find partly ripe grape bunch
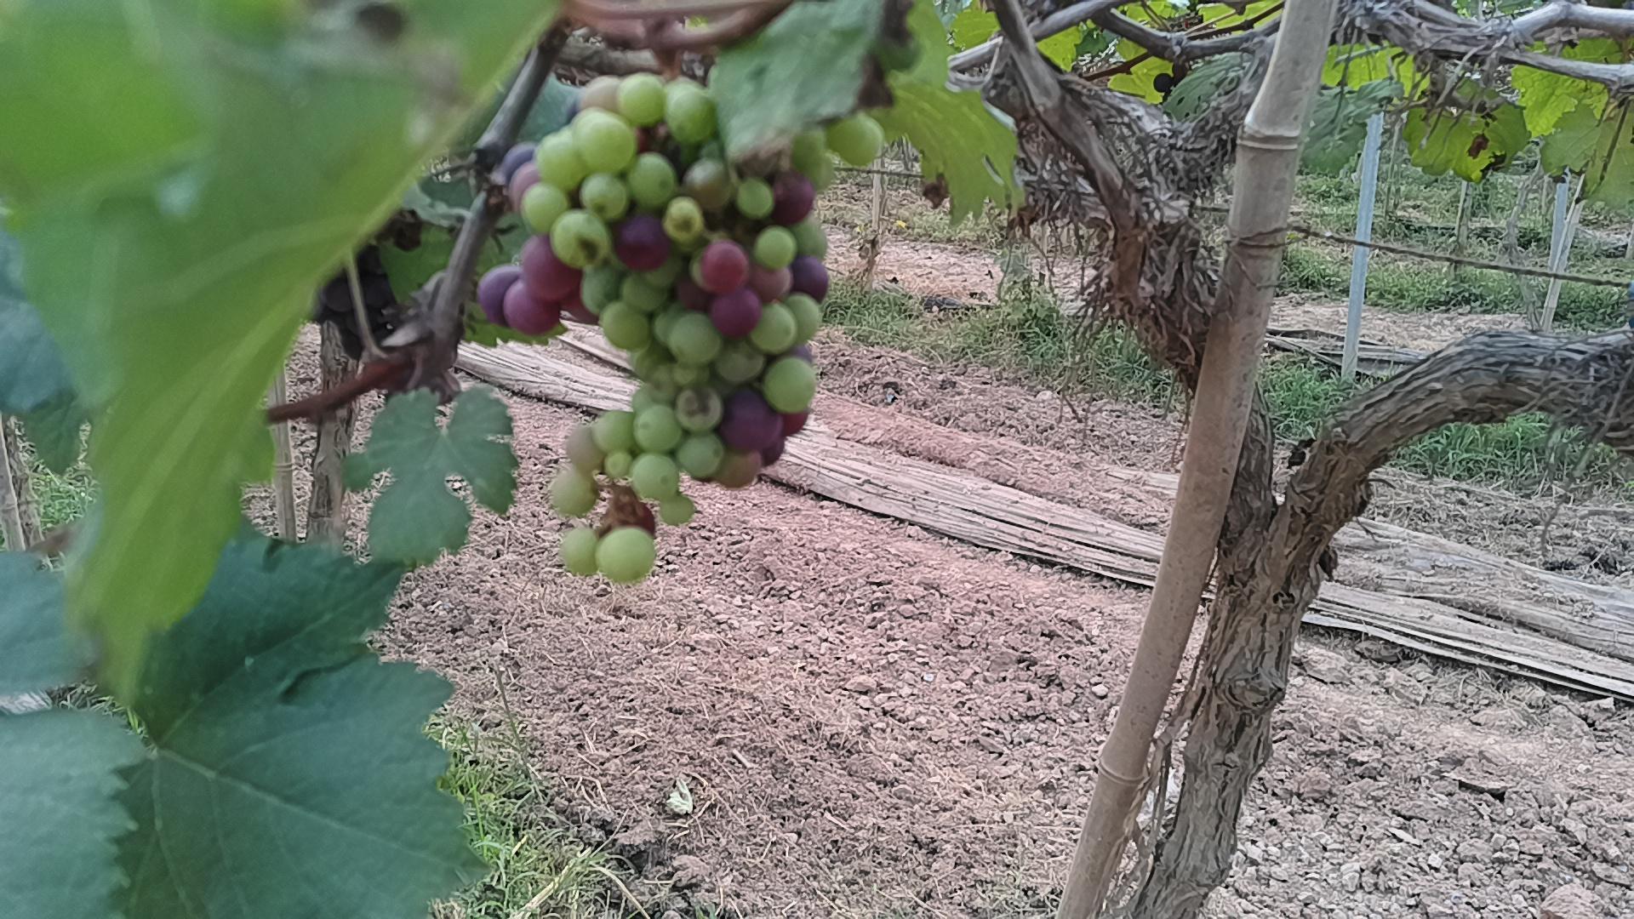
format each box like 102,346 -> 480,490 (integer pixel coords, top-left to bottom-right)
477,75 -> 883,582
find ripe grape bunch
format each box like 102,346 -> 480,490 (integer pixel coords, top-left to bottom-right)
312,245 -> 403,359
